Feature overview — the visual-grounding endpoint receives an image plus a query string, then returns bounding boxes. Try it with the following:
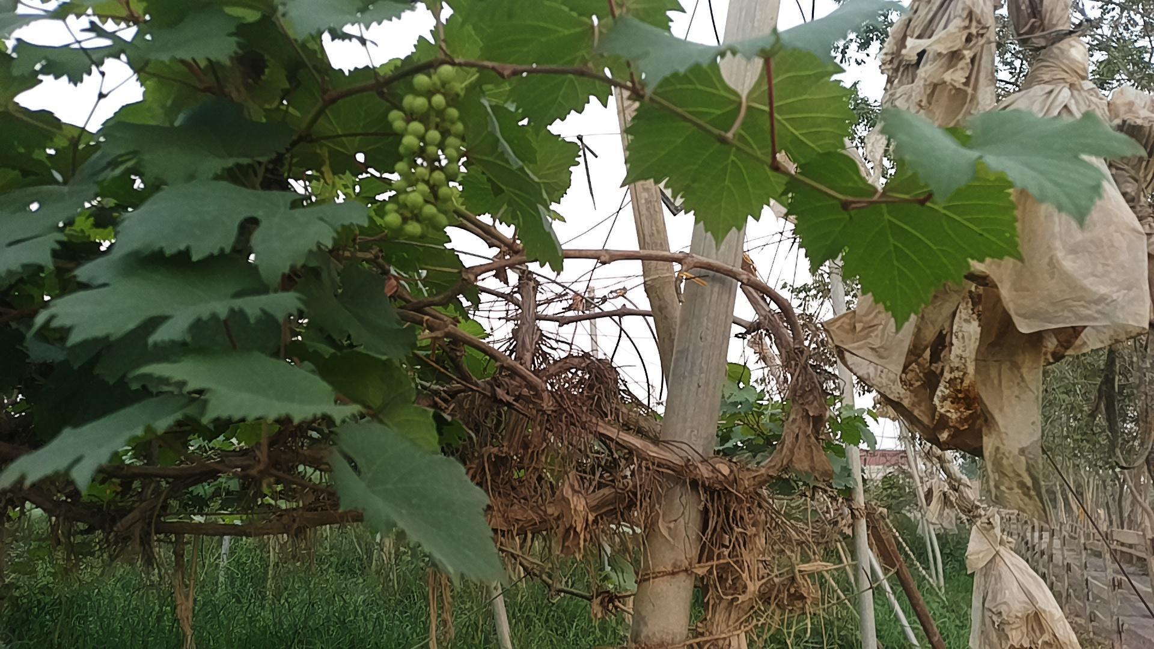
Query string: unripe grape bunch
[383,66,466,239]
